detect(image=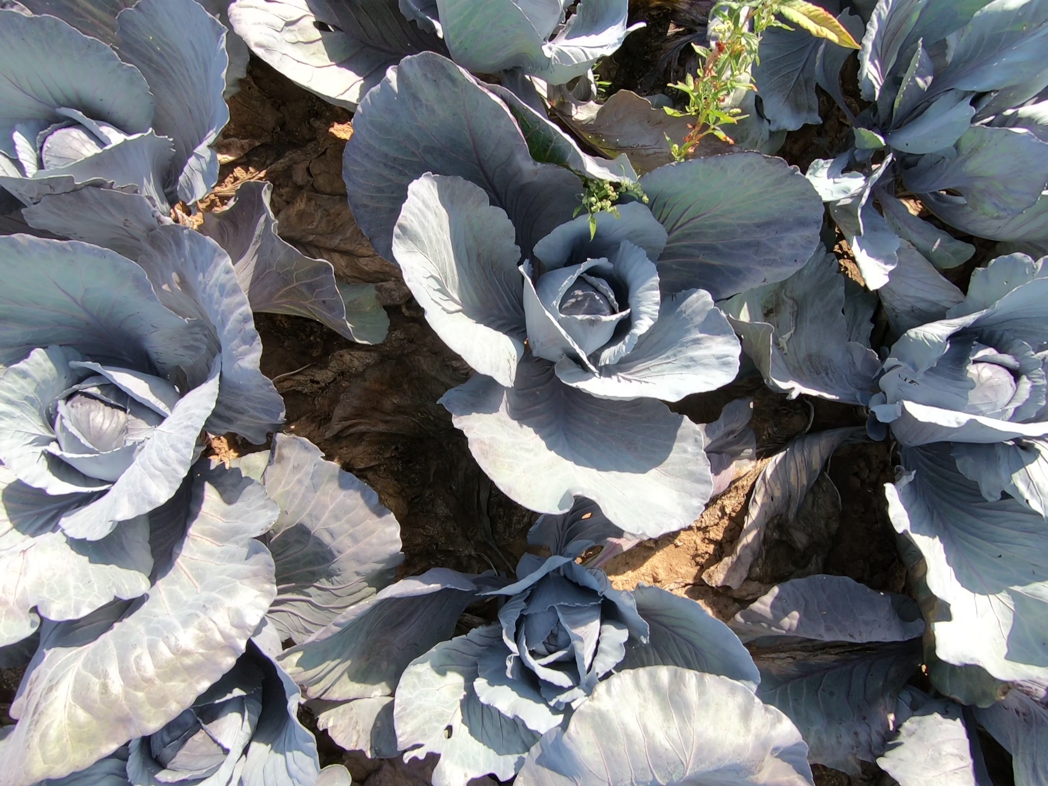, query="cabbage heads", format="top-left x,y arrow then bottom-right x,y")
546,276 -> 614,349
531,587 -> 598,661
40,119 -> 150,207
907,345 -> 1020,432
54,376 -> 178,473
148,662 -> 263,778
